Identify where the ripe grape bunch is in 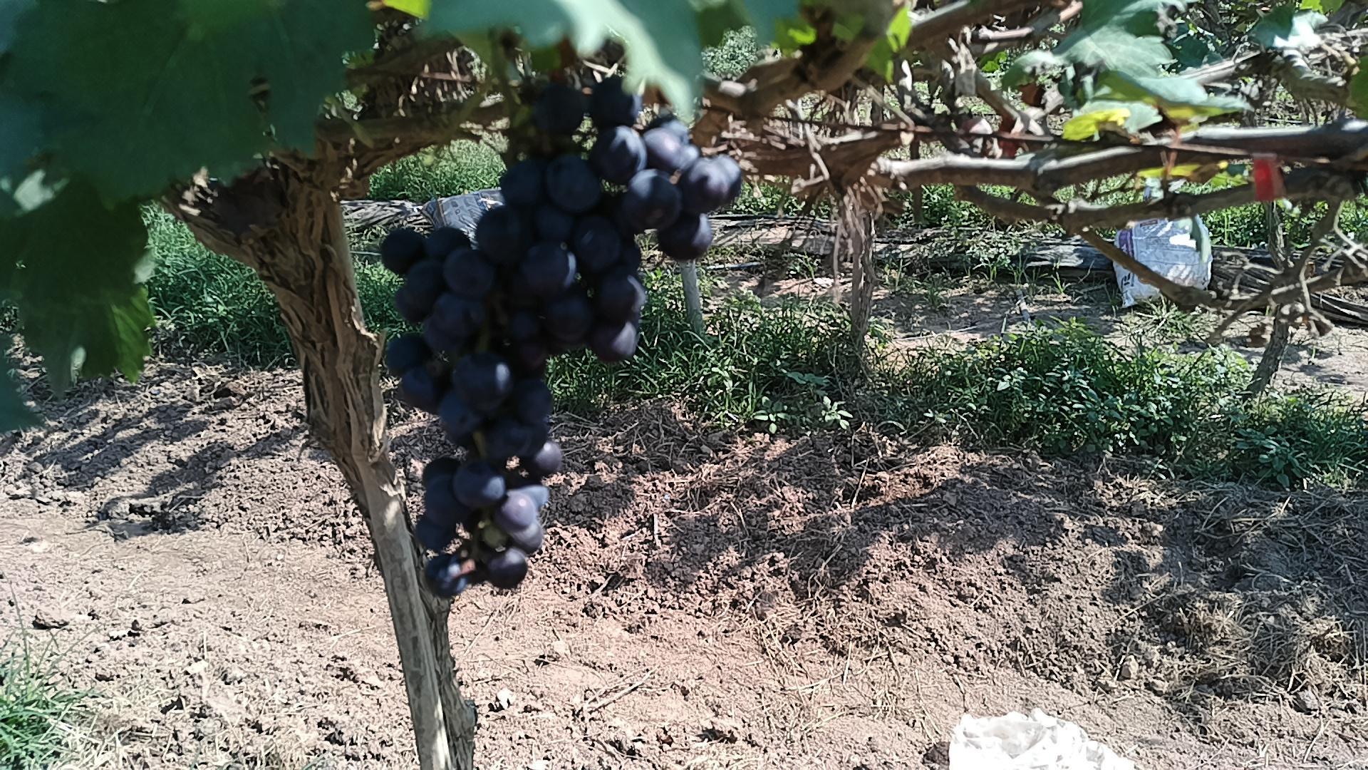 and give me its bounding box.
[383,76,742,597]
